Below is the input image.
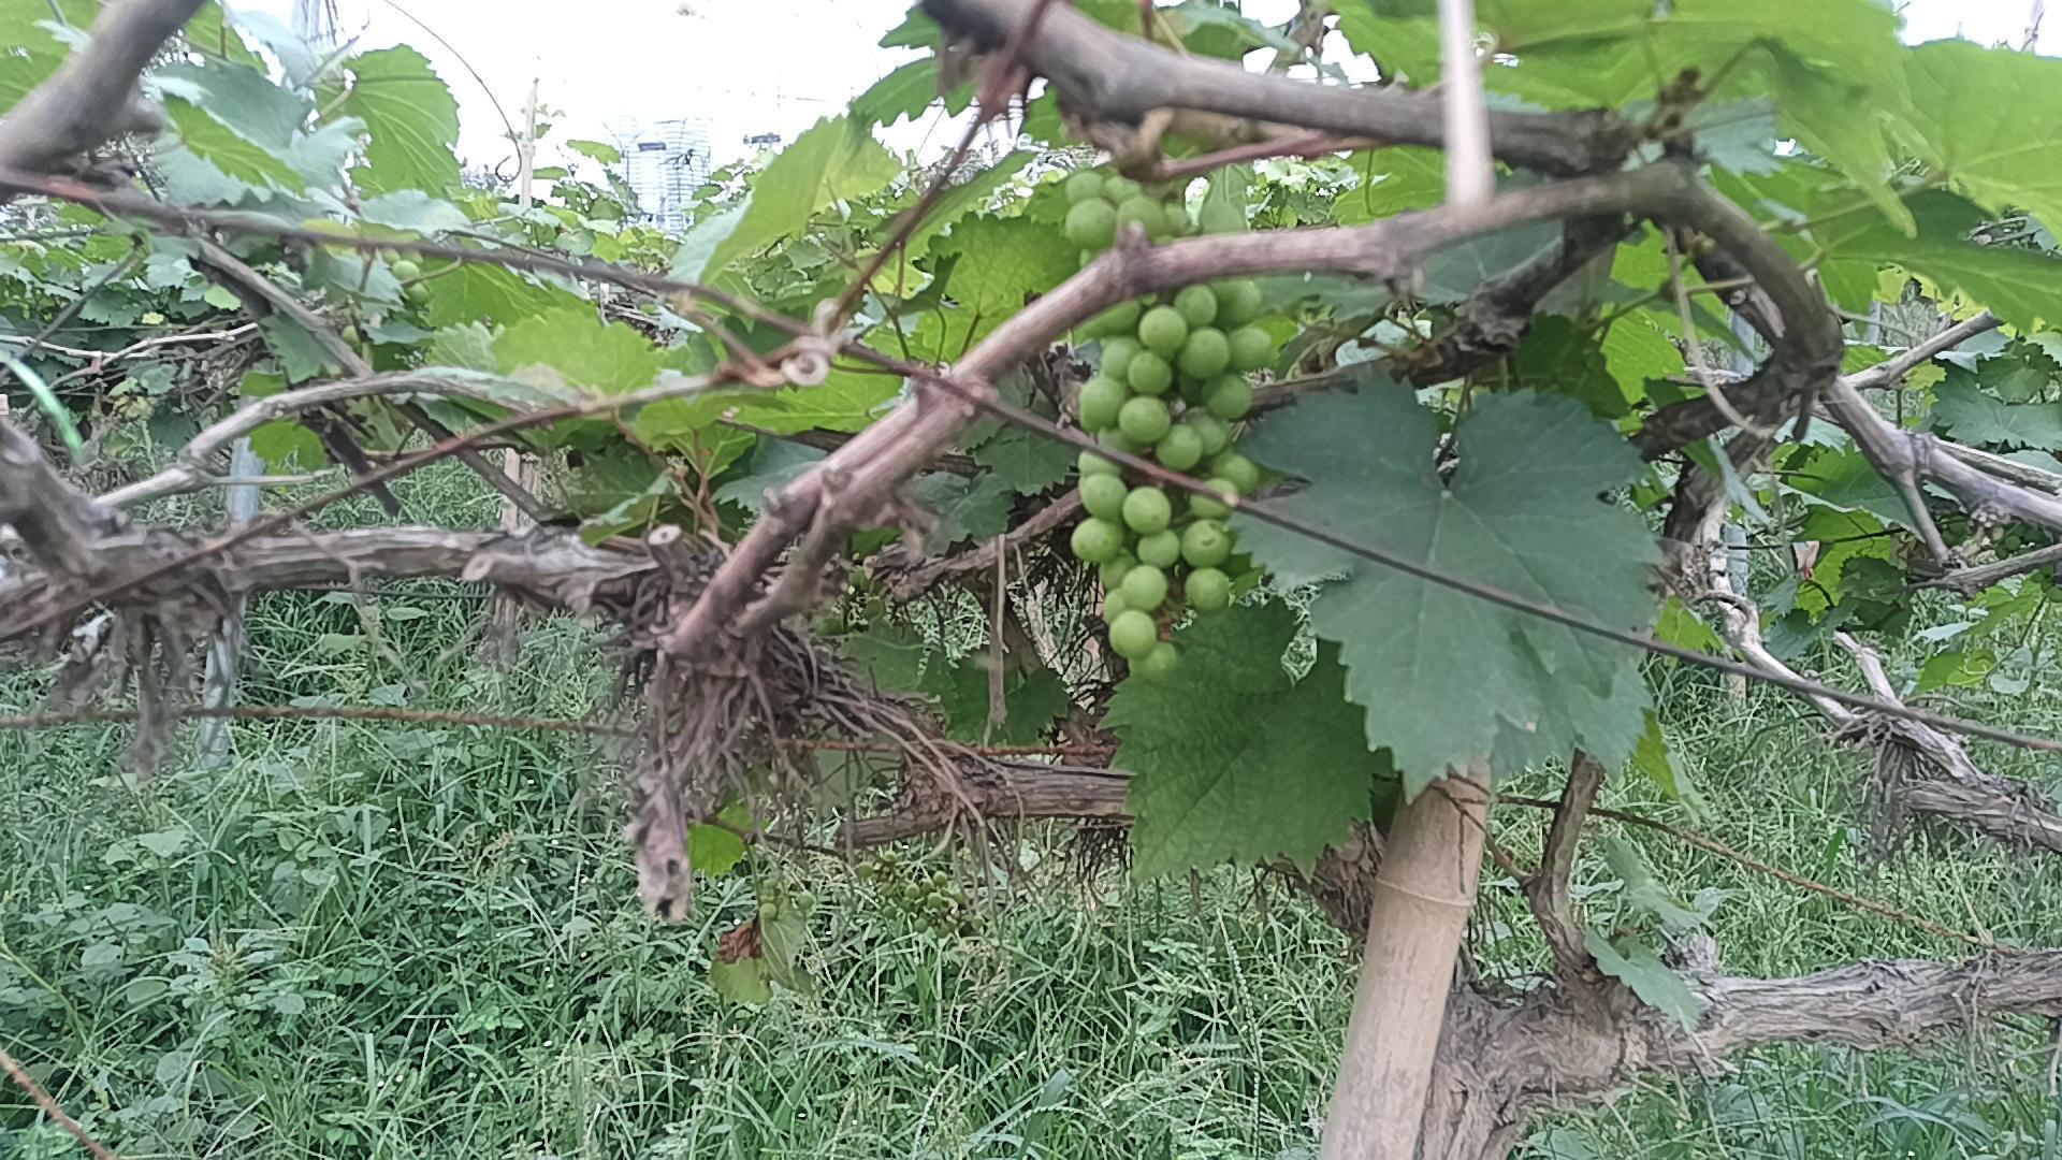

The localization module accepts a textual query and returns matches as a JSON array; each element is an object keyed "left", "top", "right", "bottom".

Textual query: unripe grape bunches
[
  {"left": 1991, "top": 518, "right": 2061, "bottom": 601},
  {"left": 858, "top": 851, "right": 983, "bottom": 938},
  {"left": 343, "top": 323, "right": 360, "bottom": 346},
  {"left": 379, "top": 248, "right": 427, "bottom": 304},
  {"left": 815, "top": 563, "right": 886, "bottom": 638},
  {"left": 1064, "top": 172, "right": 1276, "bottom": 672},
  {"left": 757, "top": 878, "right": 814, "bottom": 919}
]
